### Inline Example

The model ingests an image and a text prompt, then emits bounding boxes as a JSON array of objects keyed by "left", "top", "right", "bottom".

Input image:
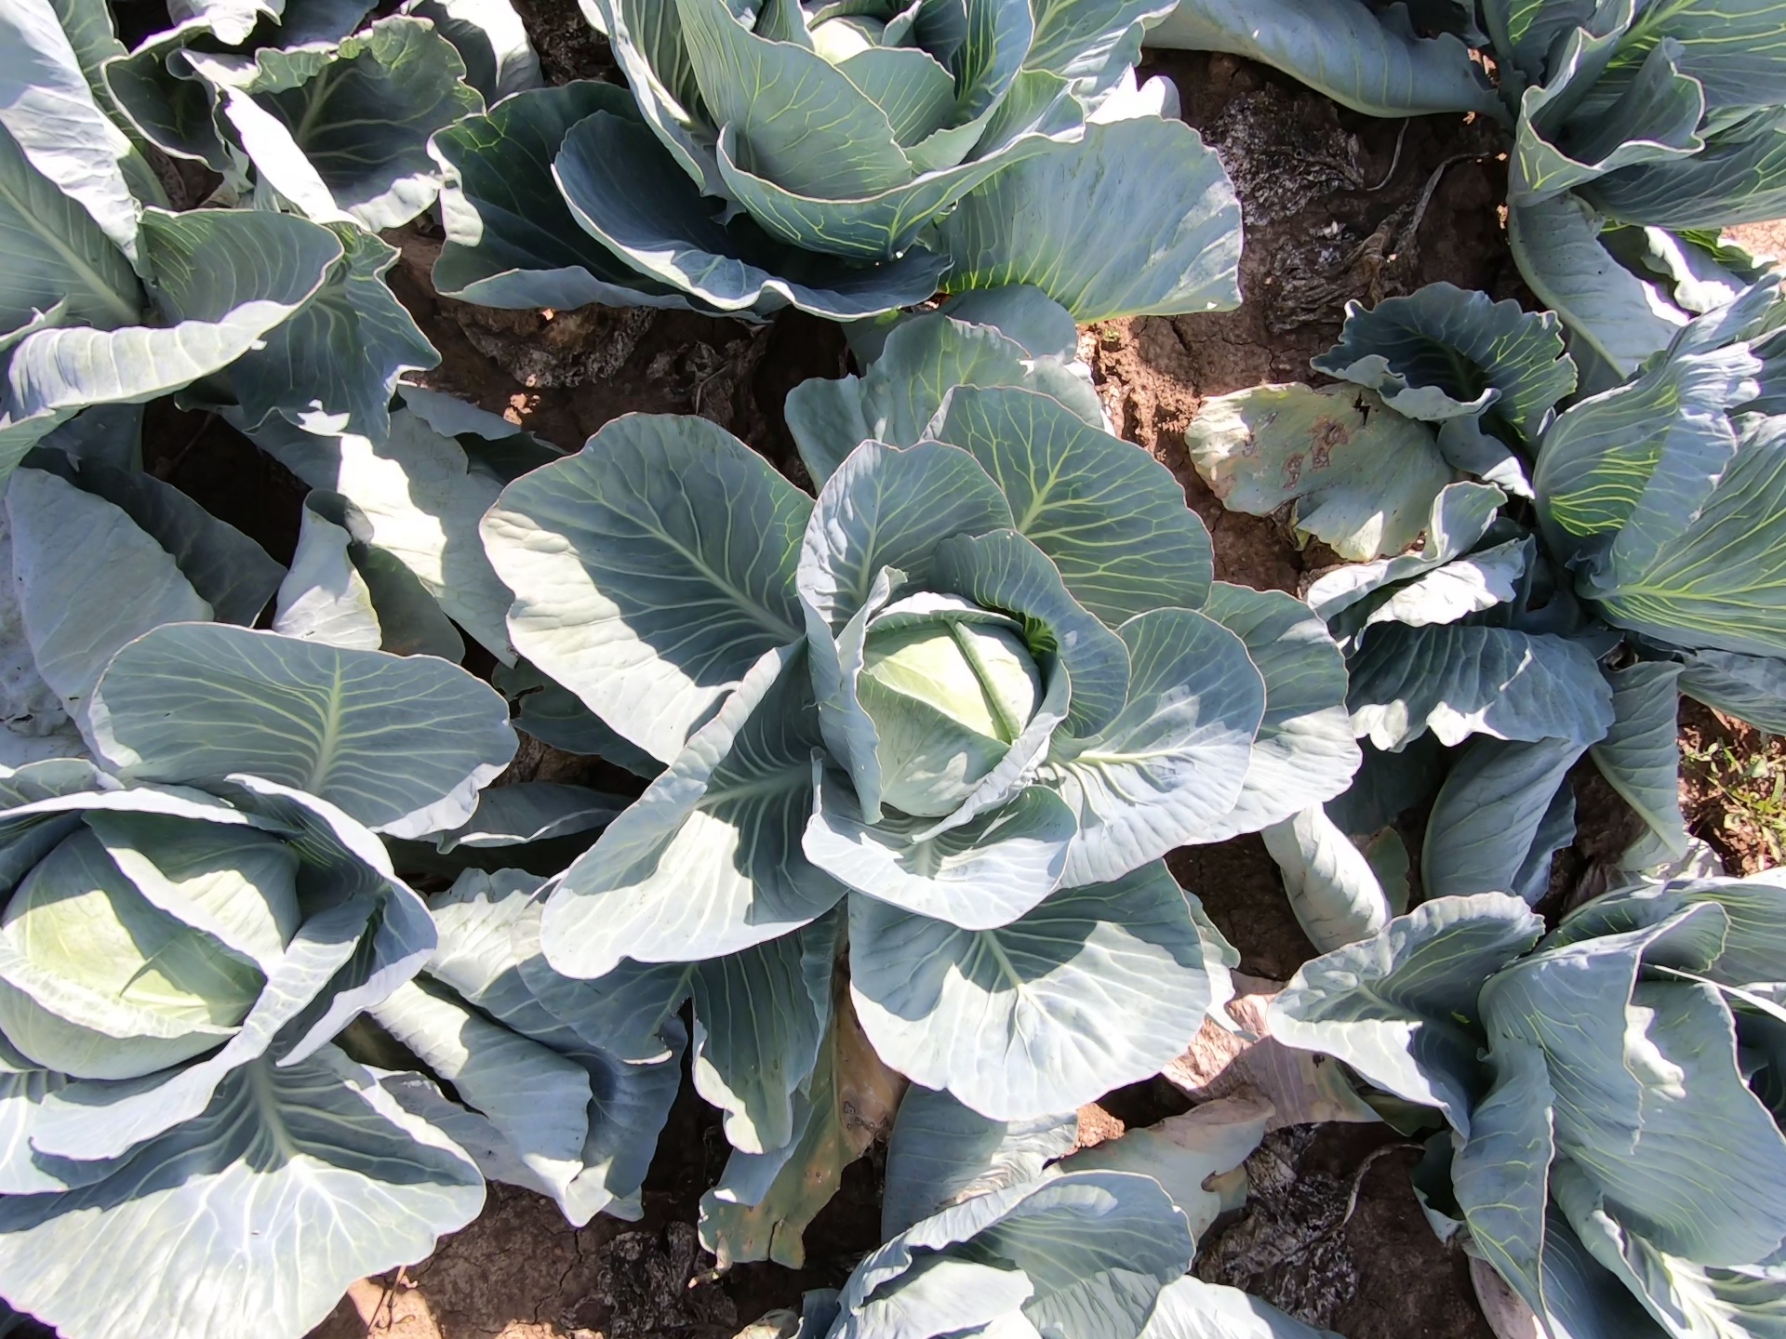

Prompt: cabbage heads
[
  {"left": 828, "top": 593, "right": 1047, "bottom": 817},
  {"left": 832, "top": 1260, "right": 1044, "bottom": 1339},
  {"left": 4, "top": 800, "right": 300, "bottom": 1077},
  {"left": 780, "top": 2, "right": 935, "bottom": 168}
]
